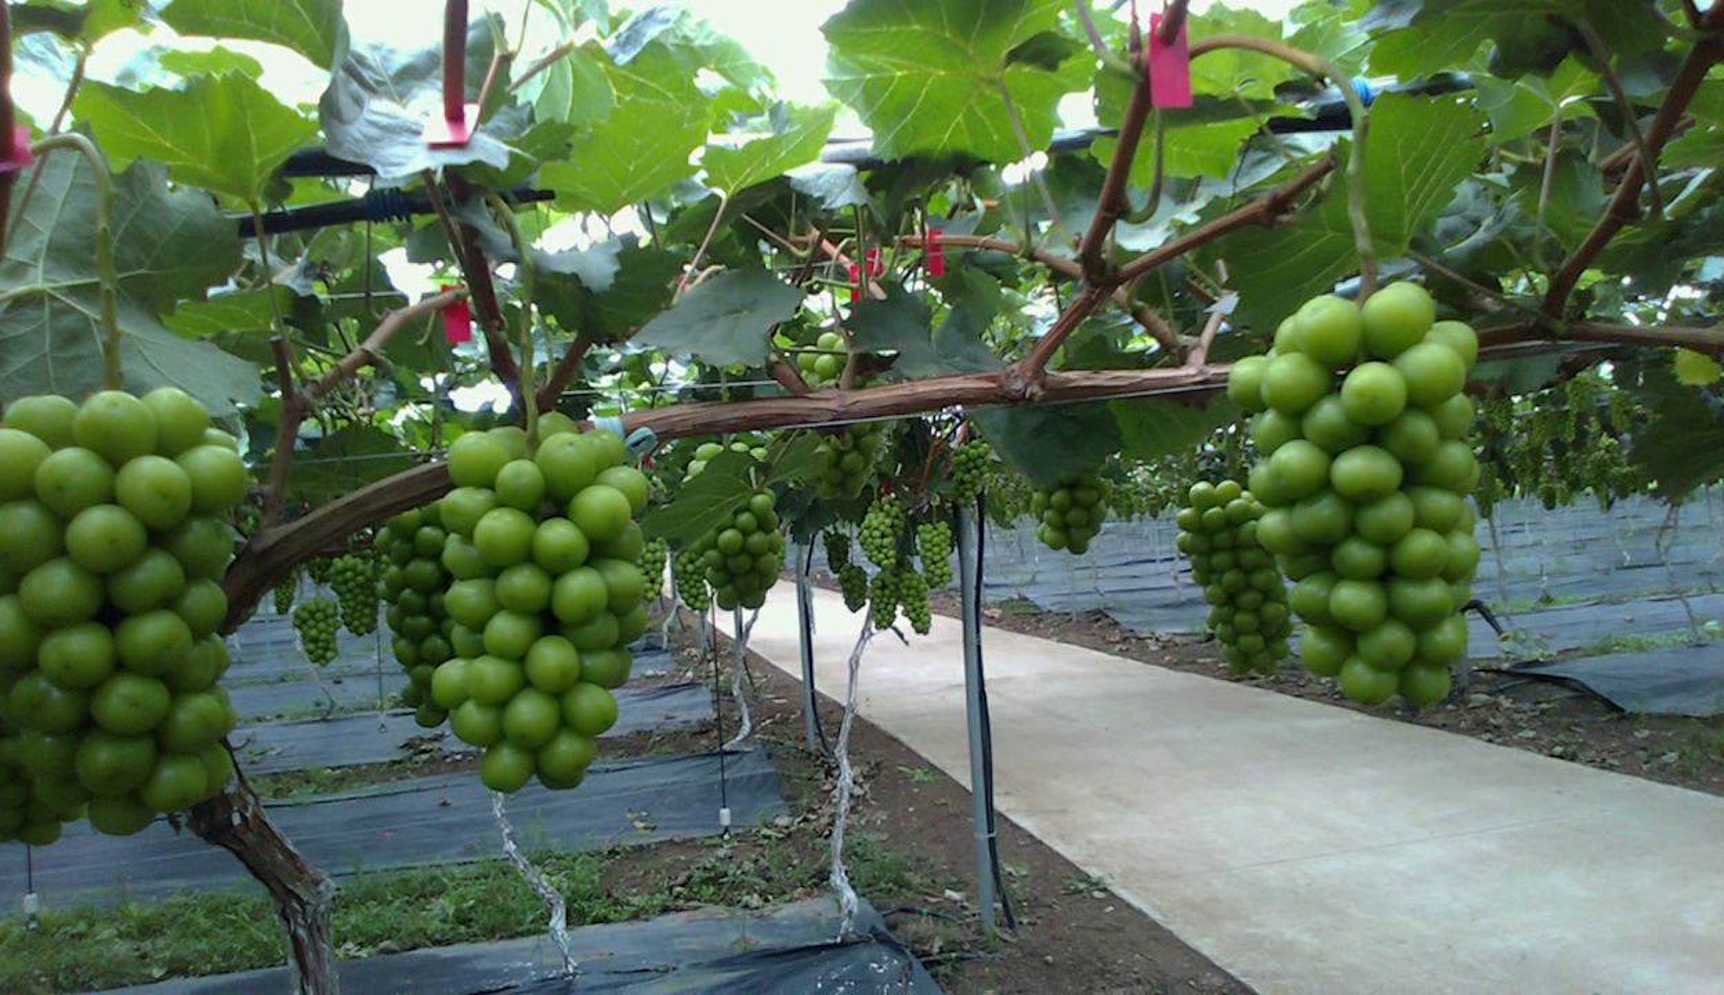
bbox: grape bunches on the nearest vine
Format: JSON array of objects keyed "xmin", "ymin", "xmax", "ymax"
[
  {"xmin": 1, "ymin": 386, "xmax": 246, "ymax": 837},
  {"xmin": 430, "ymin": 412, "xmax": 648, "ymax": 792},
  {"xmin": 1225, "ymin": 281, "xmax": 1482, "ymax": 710}
]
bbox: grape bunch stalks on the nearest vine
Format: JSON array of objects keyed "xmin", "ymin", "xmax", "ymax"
[
  {"xmin": 485, "ymin": 195, "xmax": 540, "ymax": 460},
  {"xmin": 32, "ymin": 130, "xmax": 124, "ymax": 391},
  {"xmin": 1189, "ymin": 32, "xmax": 1377, "ymax": 305}
]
